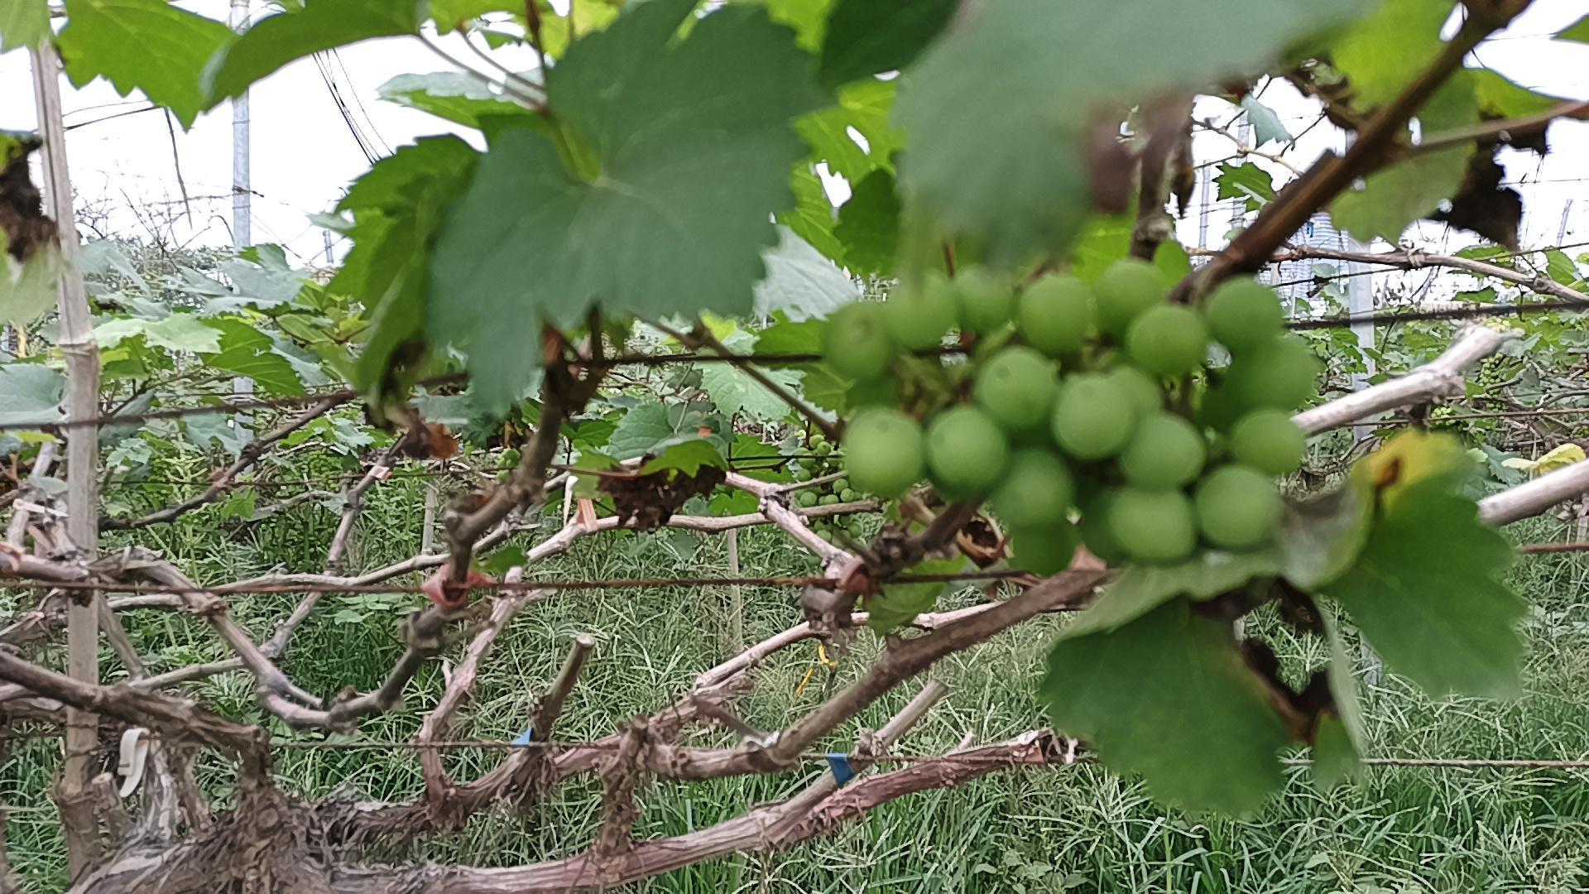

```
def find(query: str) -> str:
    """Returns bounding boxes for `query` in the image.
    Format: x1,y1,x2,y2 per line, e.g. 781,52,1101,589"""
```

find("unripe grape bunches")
822,258,1320,570
497,447,521,483
785,423,863,548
